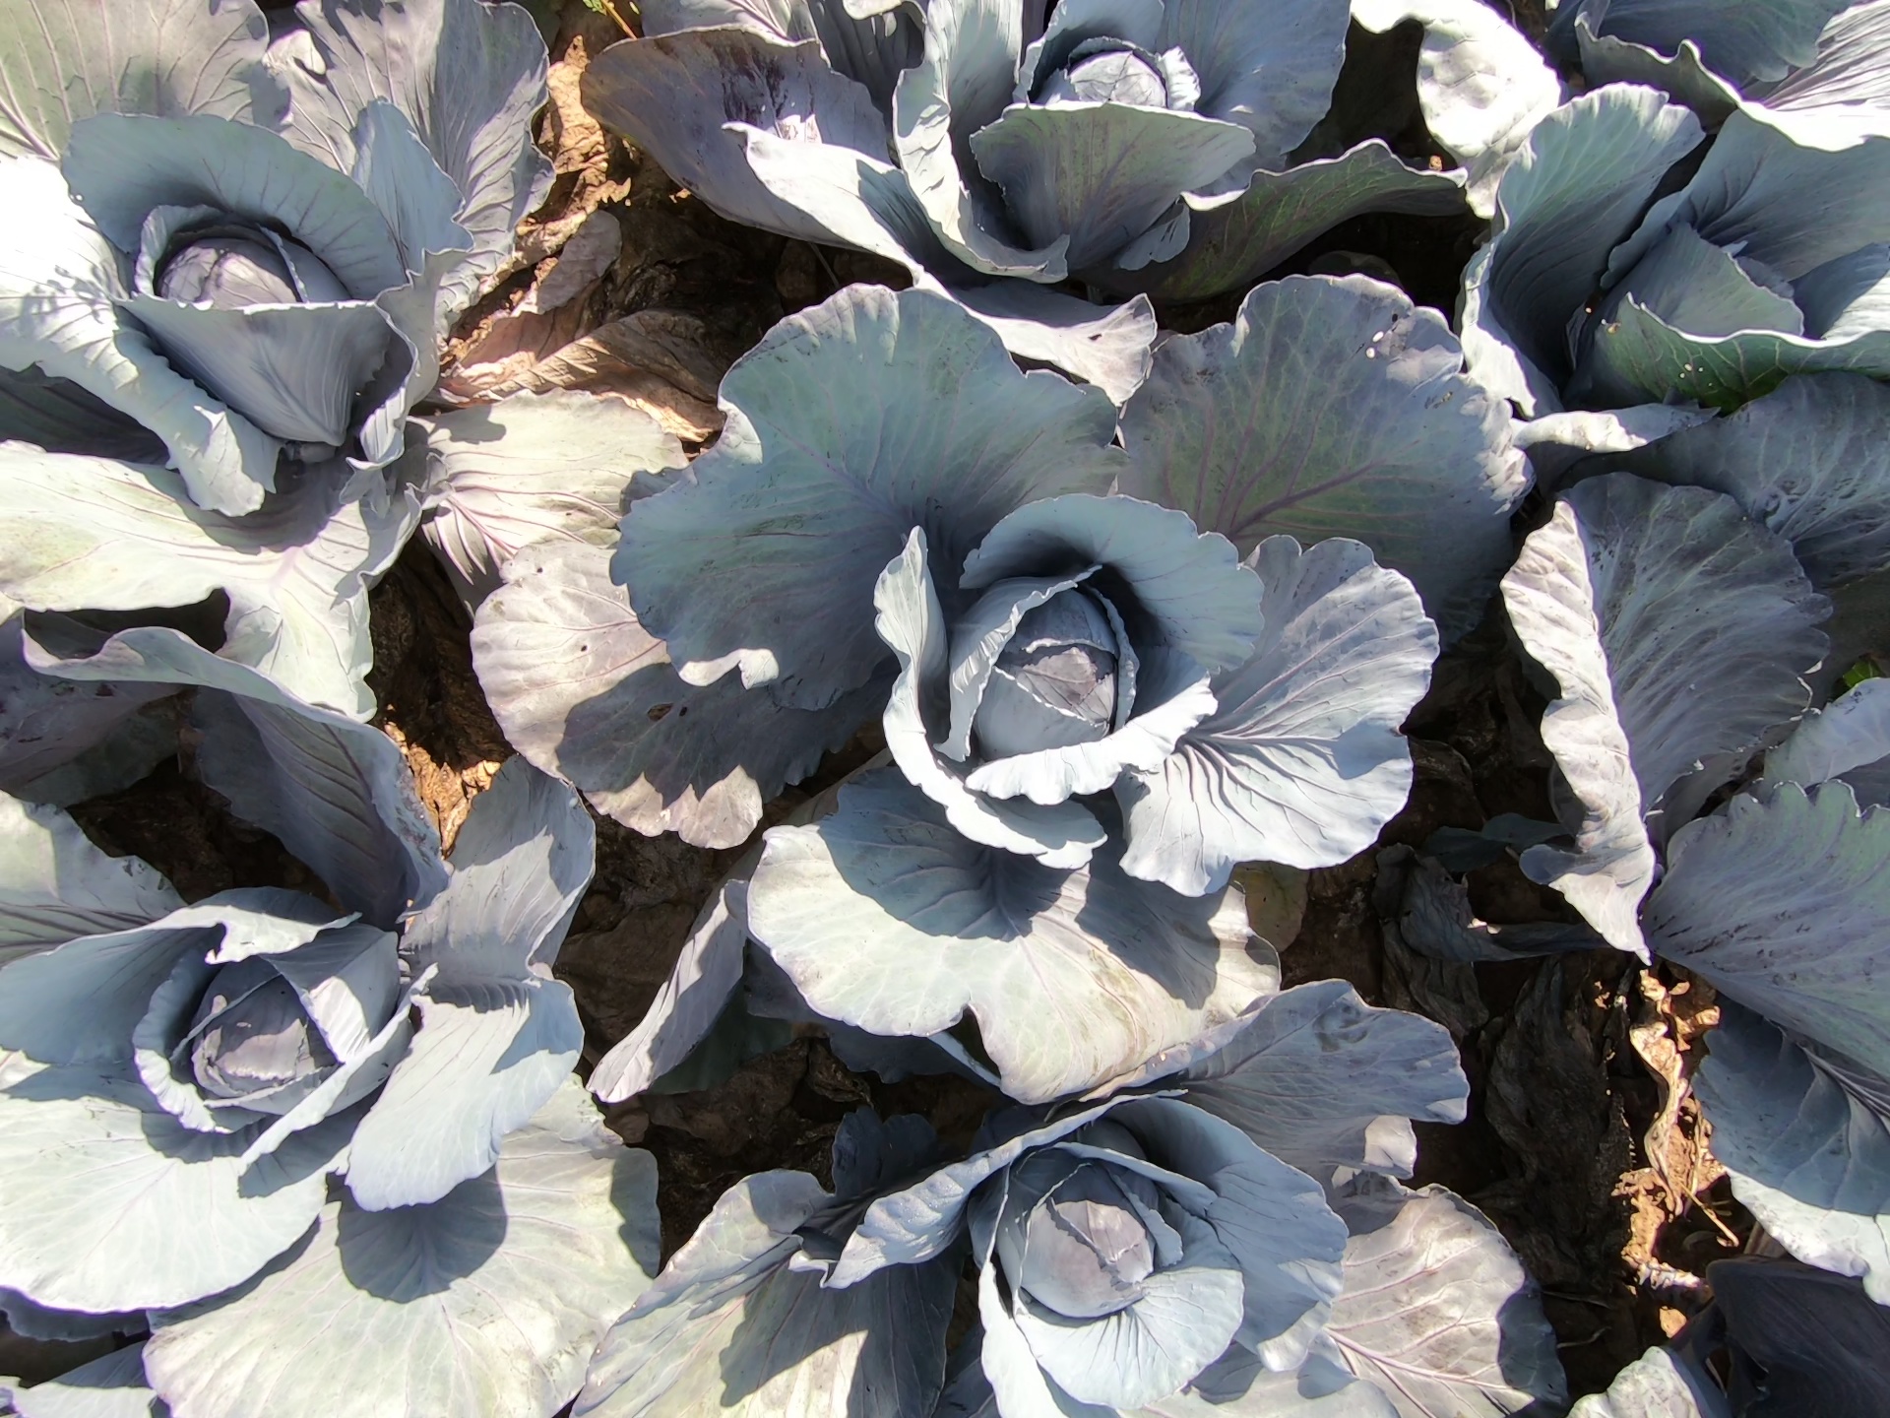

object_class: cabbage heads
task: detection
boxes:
[156,232,346,406]
[191,934,392,1100]
[1037,45,1171,217]
[962,581,1133,759]
[998,1129,1163,1317]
